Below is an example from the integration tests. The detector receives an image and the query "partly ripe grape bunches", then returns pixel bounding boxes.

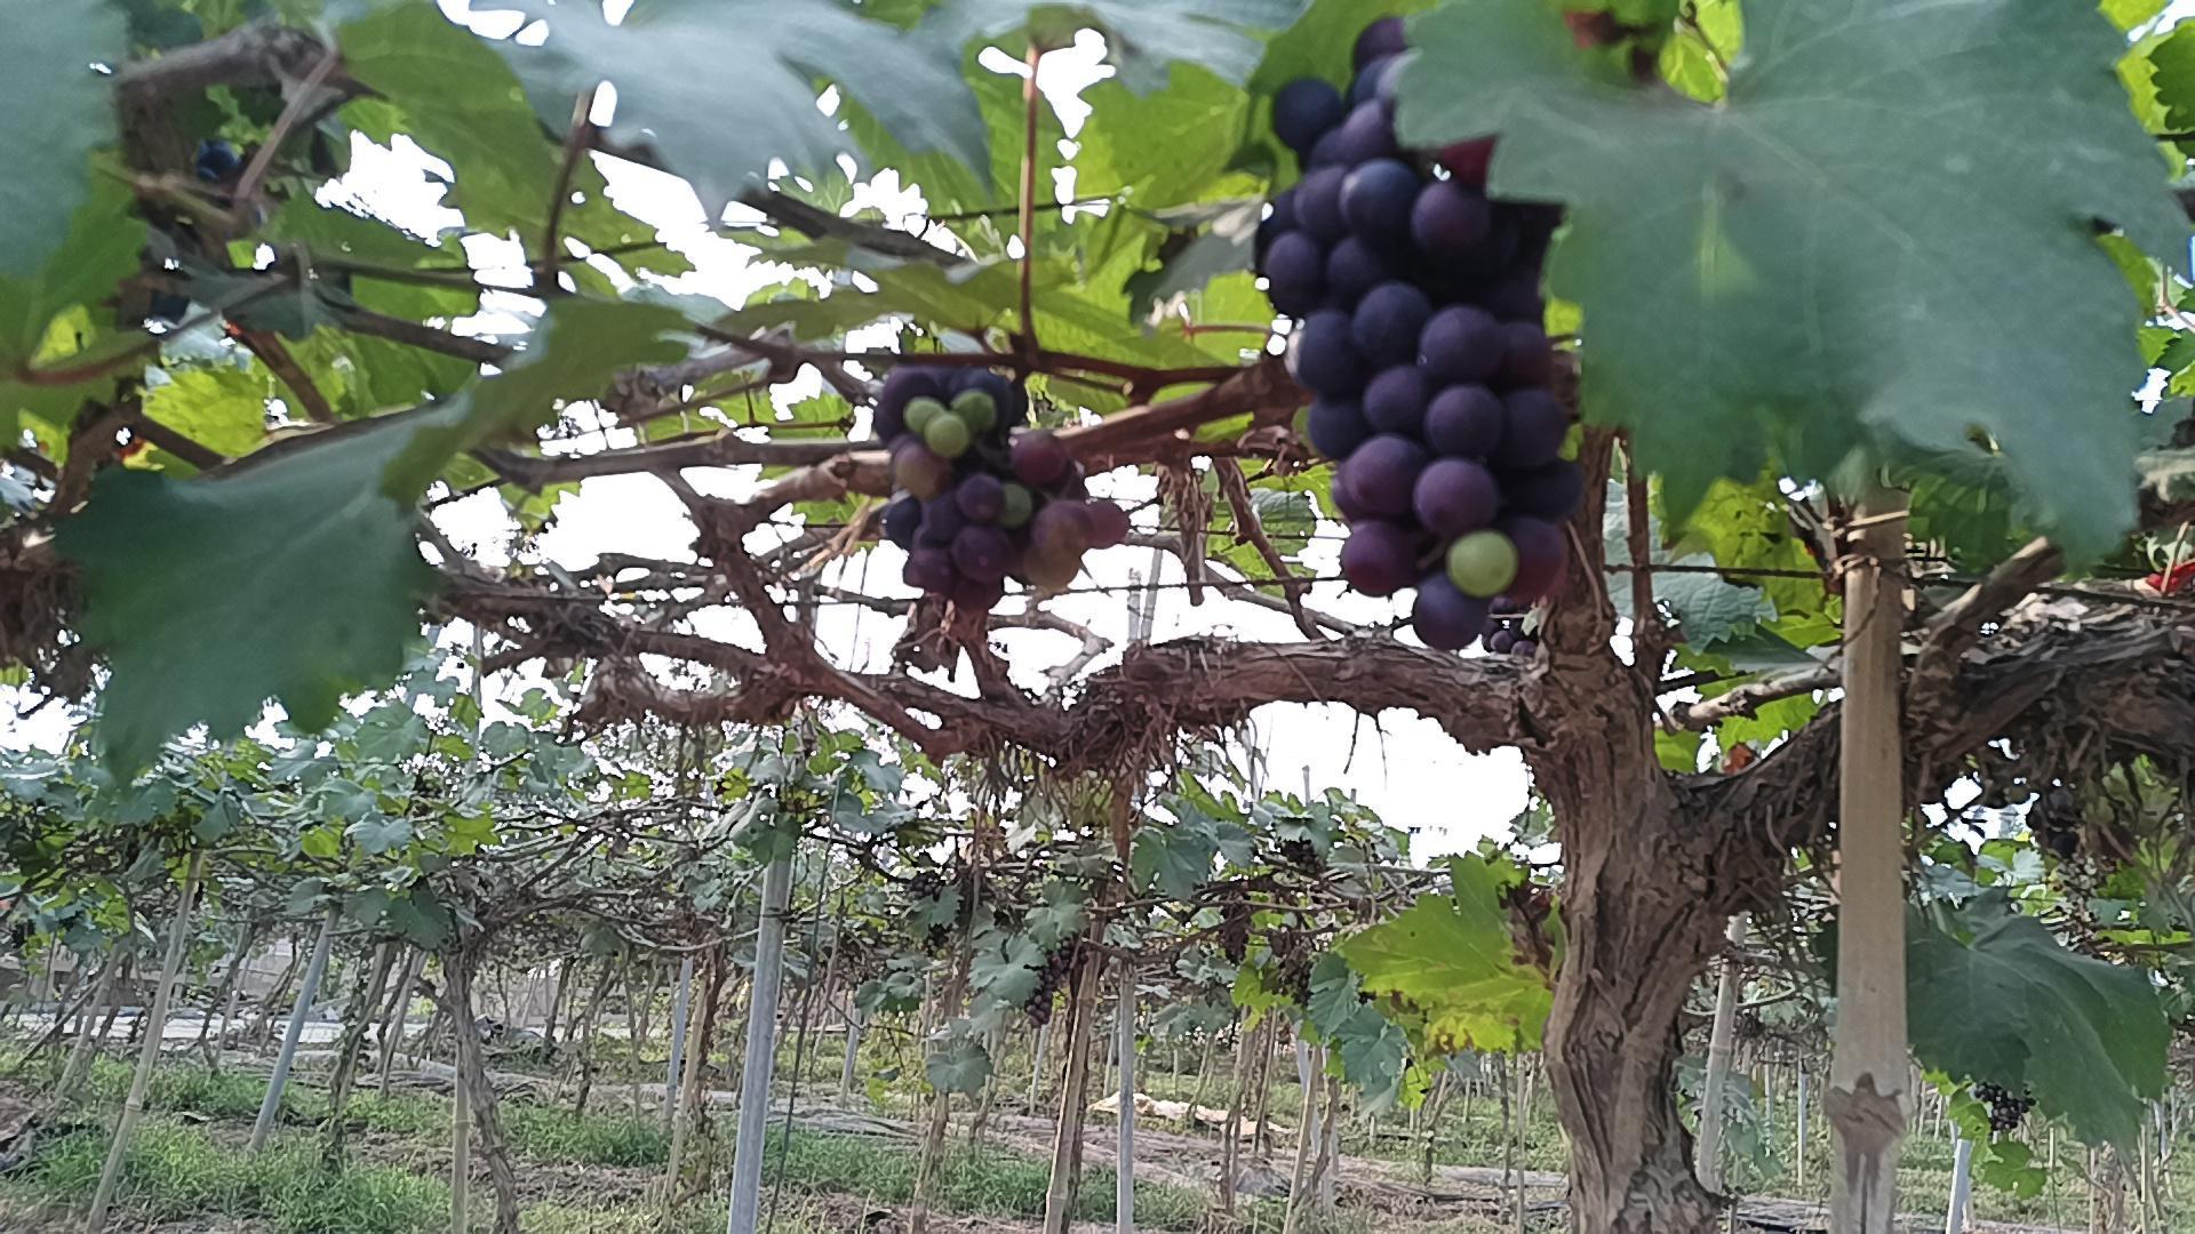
[873,368,1130,611]
[1254,18,1582,651]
